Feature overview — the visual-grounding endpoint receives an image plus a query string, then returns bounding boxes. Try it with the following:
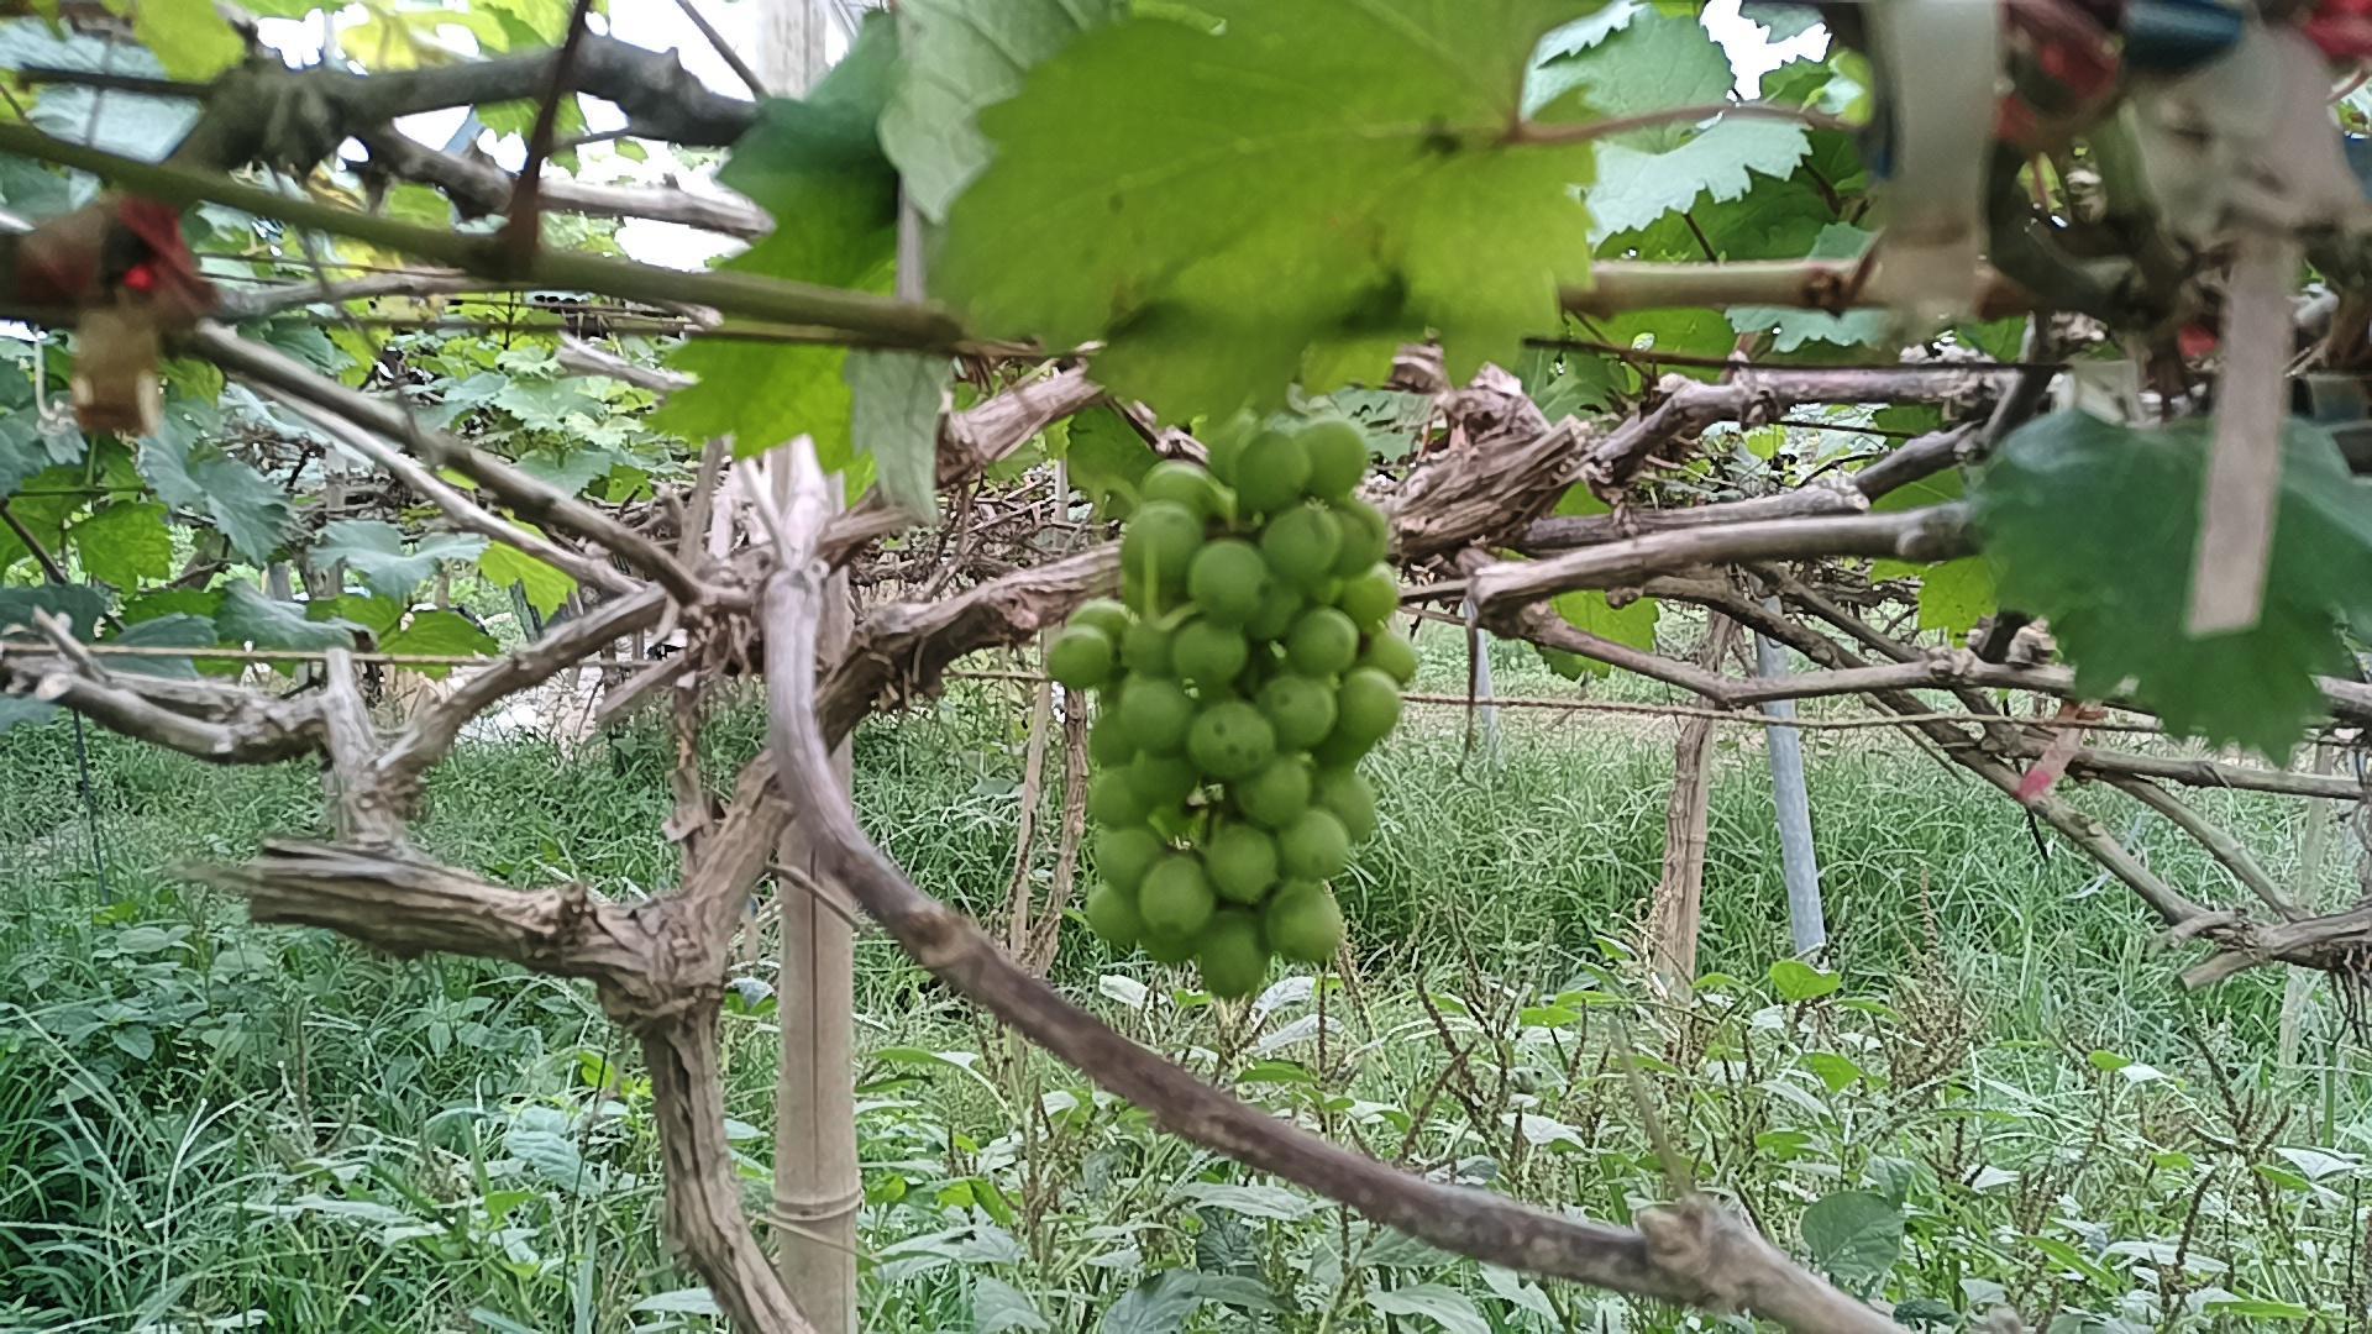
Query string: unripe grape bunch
[1049,415,1415,998]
